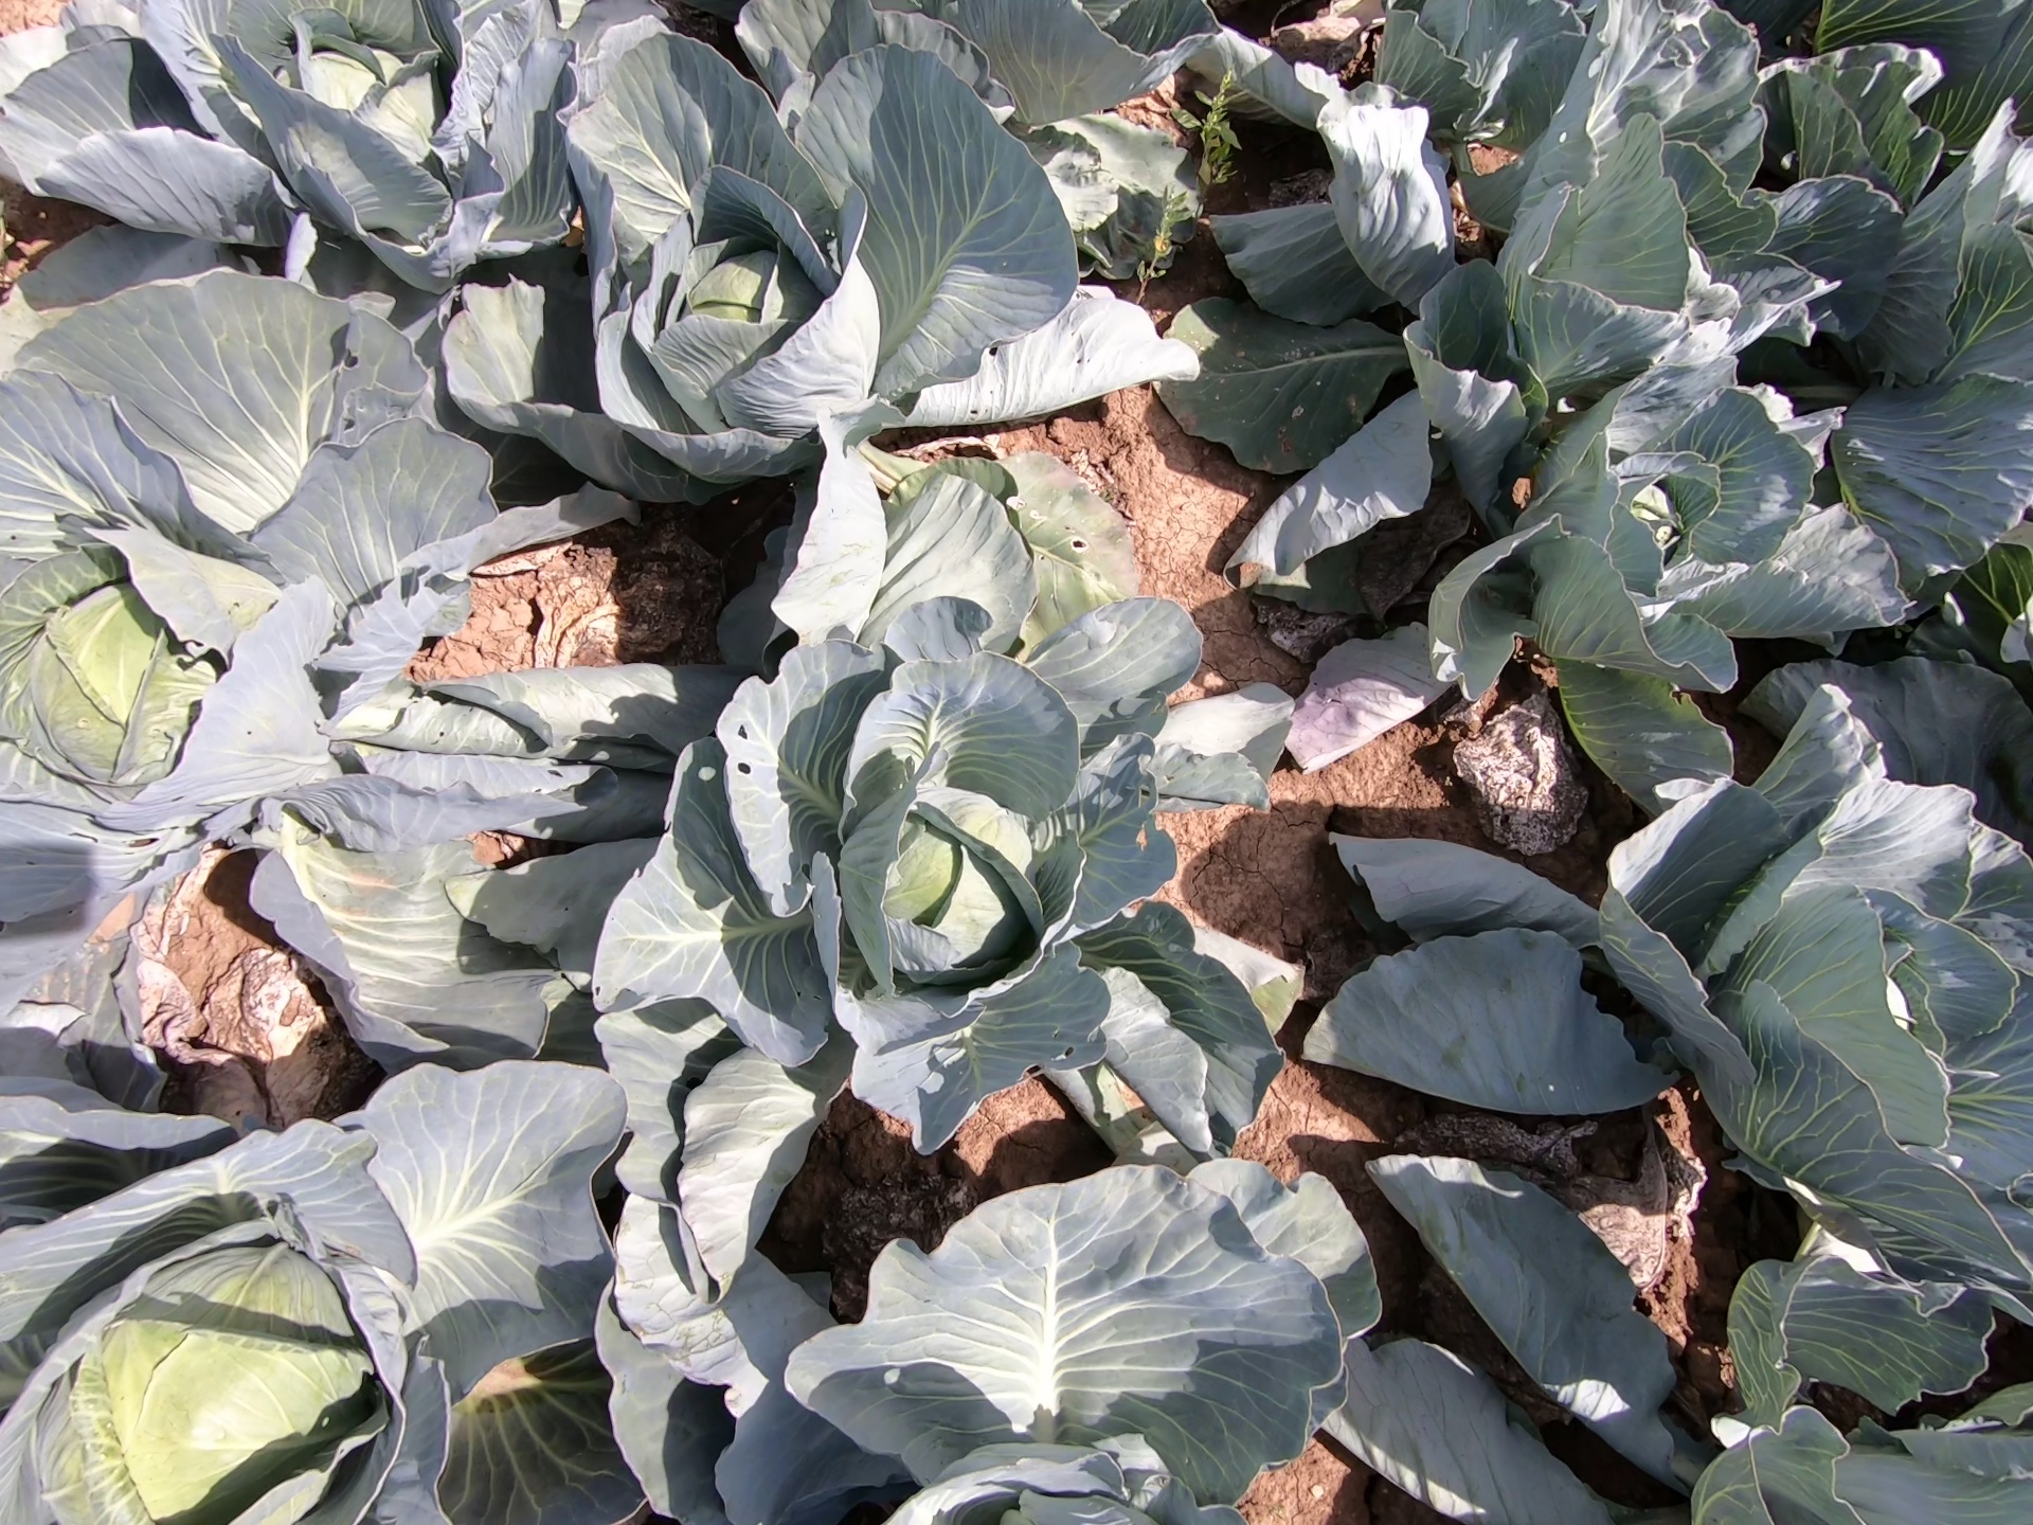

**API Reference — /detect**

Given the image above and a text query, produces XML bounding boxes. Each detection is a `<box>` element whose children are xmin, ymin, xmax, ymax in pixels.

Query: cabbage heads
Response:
<box><xmin>266</xmin><ymin>43</ymin><xmax>434</xmax><ymax>202</ymax></box>
<box><xmin>1532</xmin><ymin>209</ymin><xmax>1705</xmax><ymax>367</ymax></box>
<box><xmin>1734</xmin><ymin>949</ymin><xmax>1918</xmax><ymax>1108</ymax></box>
<box><xmin>30</xmin><ymin>562</ymin><xmax>282</xmax><ymax>781</ymax></box>
<box><xmin>1566</xmin><ymin>478</ymin><xmax>1680</xmax><ymax>580</ymax></box>
<box><xmin>31</xmin><ymin>1243</ymin><xmax>390</xmax><ymax>1523</ymax></box>
<box><xmin>672</xmin><ymin>248</ymin><xmax>853</xmax><ymax>427</ymax></box>
<box><xmin>846</xmin><ymin>786</ymin><xmax>1035</xmax><ymax>984</ymax></box>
